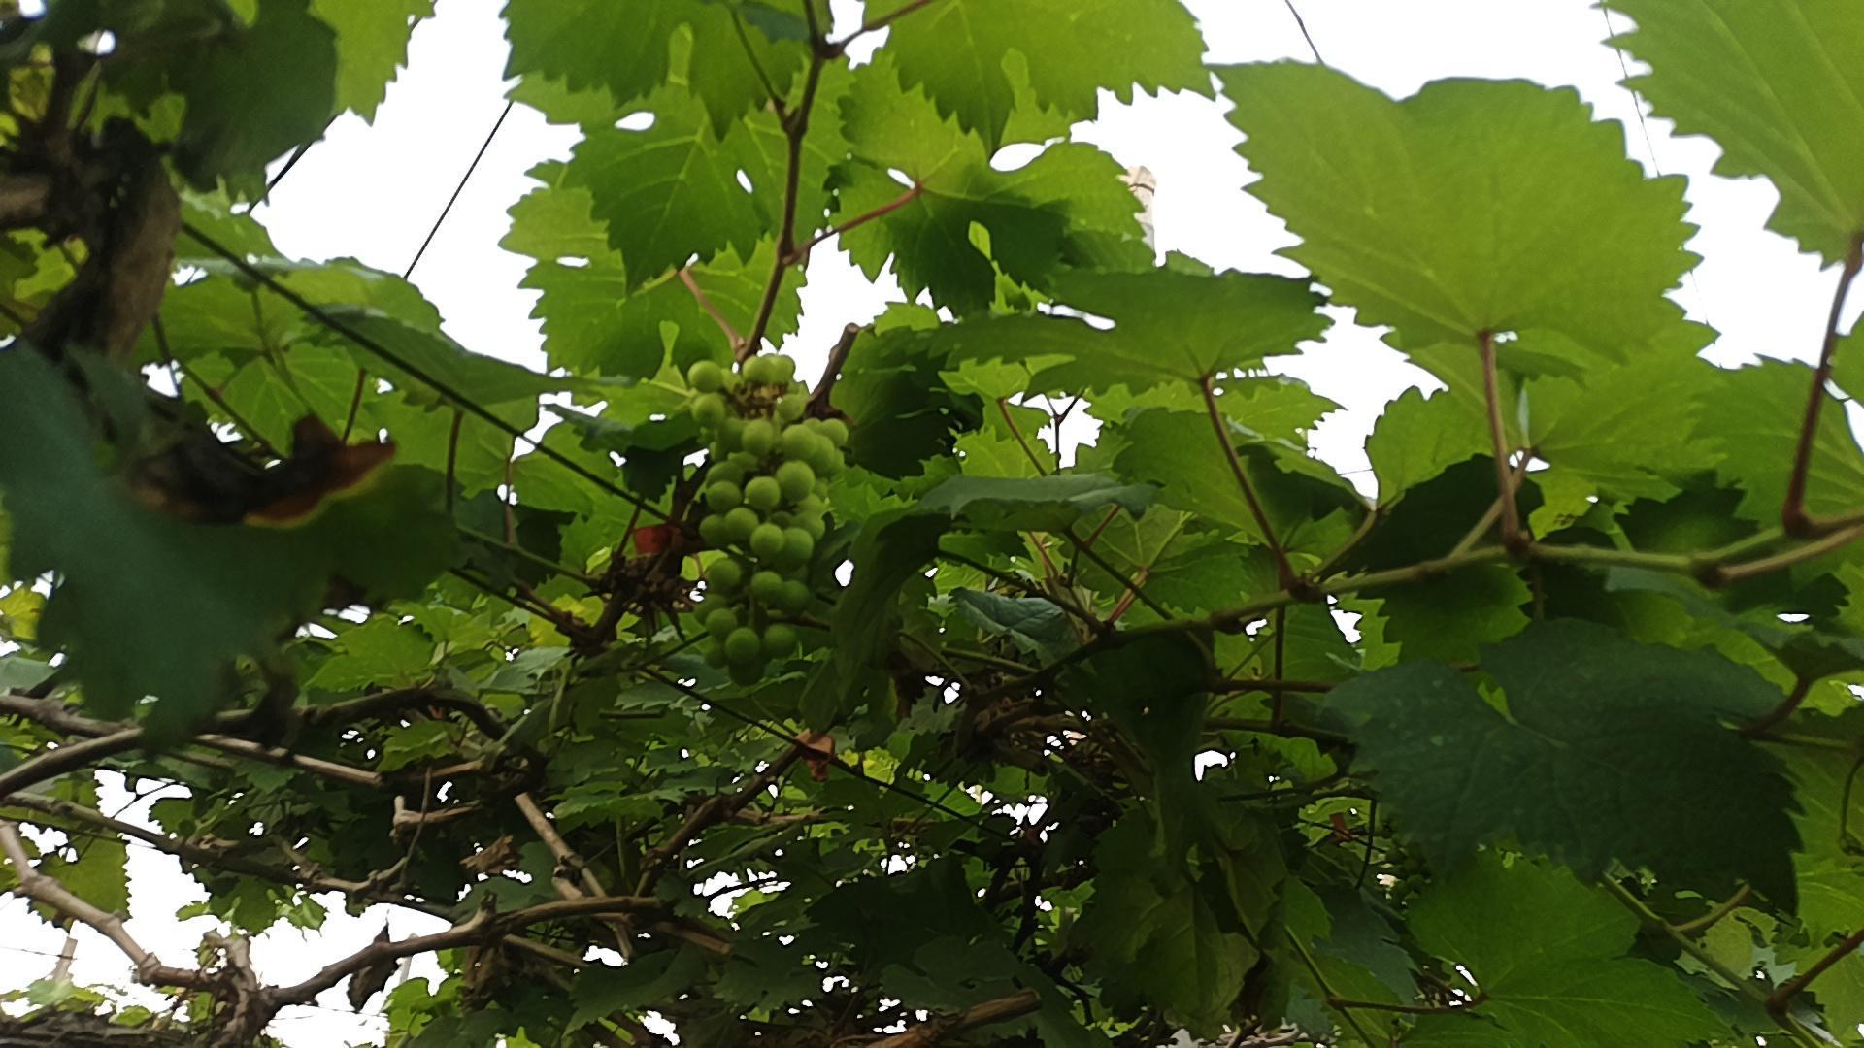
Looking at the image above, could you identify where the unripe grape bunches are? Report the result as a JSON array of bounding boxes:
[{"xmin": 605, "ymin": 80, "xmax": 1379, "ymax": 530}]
[
  {"xmin": 691, "ymin": 357, "xmax": 848, "ymax": 681},
  {"xmin": 1357, "ymin": 800, "xmax": 1433, "ymax": 929}
]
